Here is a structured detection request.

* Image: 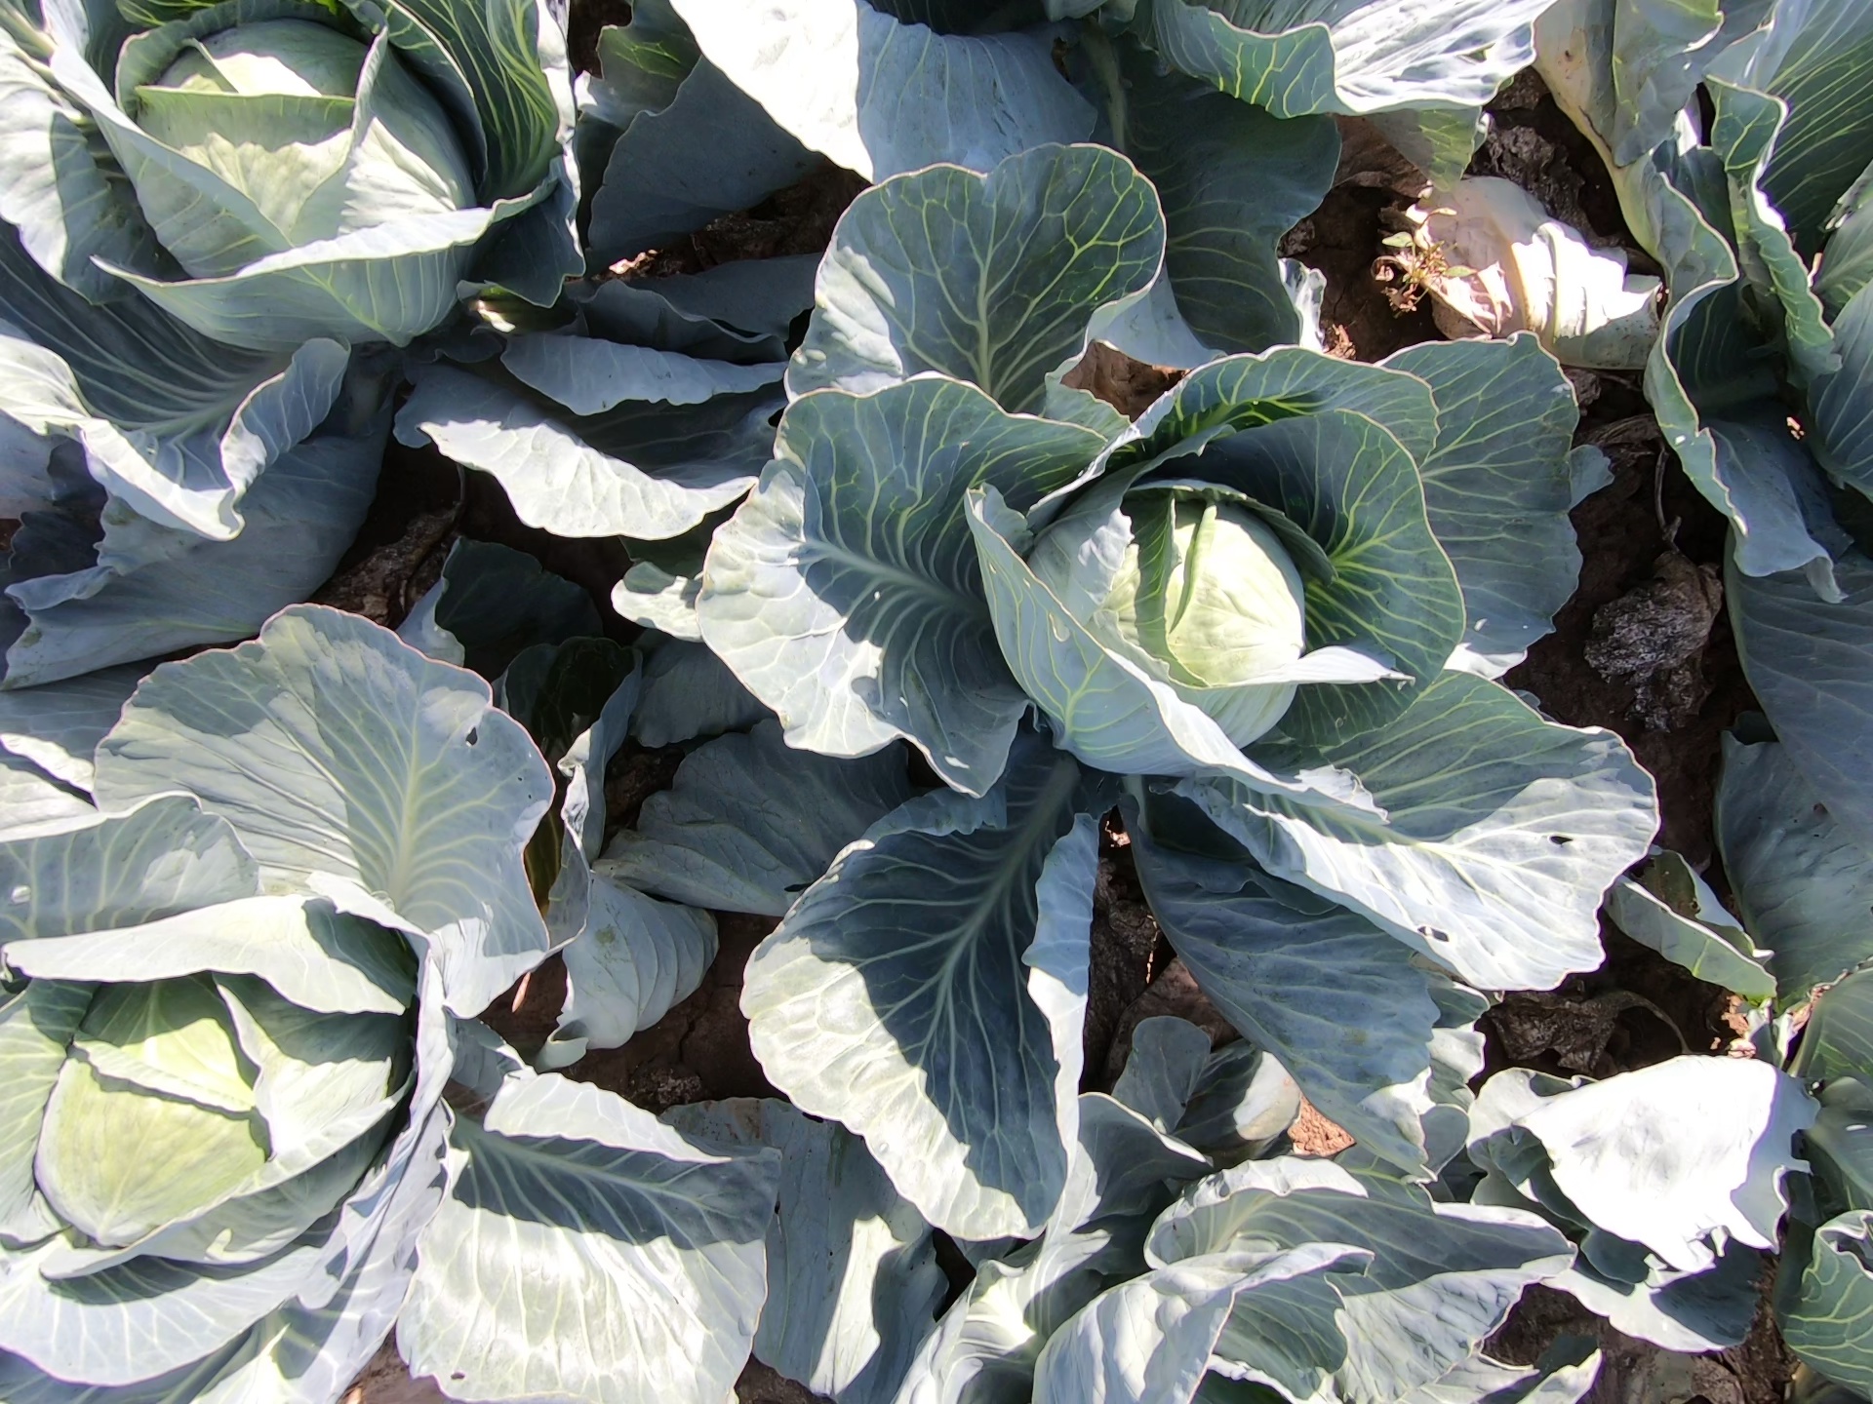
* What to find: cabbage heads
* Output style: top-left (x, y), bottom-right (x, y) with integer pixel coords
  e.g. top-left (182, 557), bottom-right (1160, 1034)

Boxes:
top-left (136, 15), bottom-right (470, 337)
top-left (1028, 495), bottom-right (1311, 761)
top-left (31, 923), bottom-right (412, 1267)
